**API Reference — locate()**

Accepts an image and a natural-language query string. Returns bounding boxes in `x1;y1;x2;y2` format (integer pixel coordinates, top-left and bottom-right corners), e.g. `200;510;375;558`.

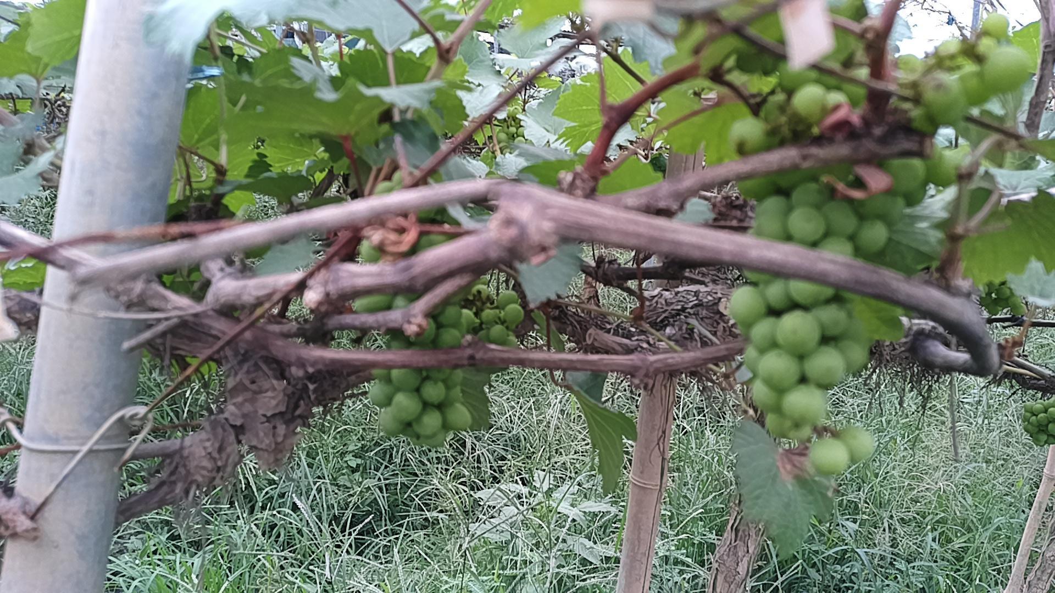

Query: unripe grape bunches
494;105;529;154
354;166;523;447
1023;399;1054;445
728;14;1033;476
